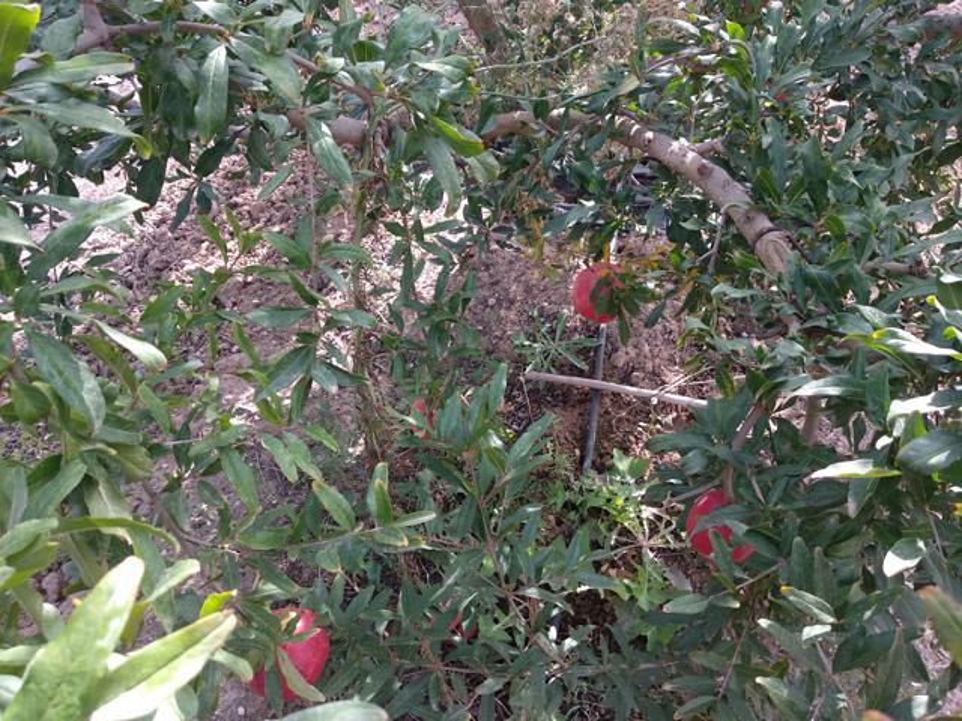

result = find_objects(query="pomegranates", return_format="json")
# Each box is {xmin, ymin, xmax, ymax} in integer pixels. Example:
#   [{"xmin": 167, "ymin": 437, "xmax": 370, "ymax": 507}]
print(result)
[
  {"xmin": 571, "ymin": 261, "xmax": 628, "ymax": 323},
  {"xmin": 685, "ymin": 488, "xmax": 755, "ymax": 562},
  {"xmin": 247, "ymin": 607, "xmax": 329, "ymax": 700}
]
